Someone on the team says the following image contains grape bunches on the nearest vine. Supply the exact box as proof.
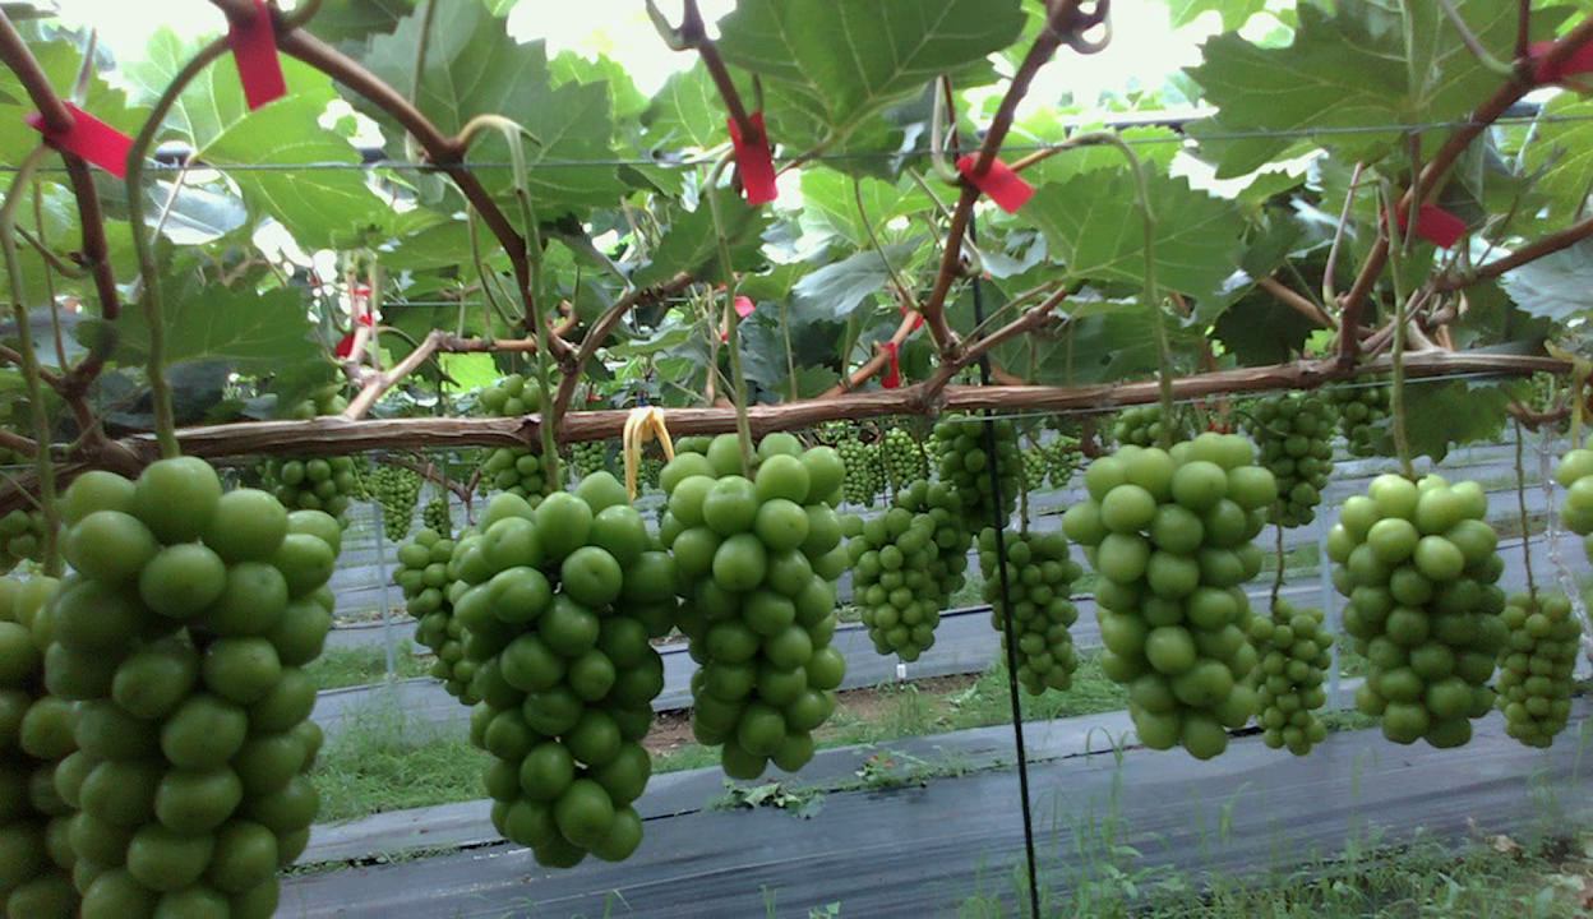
[41,453,338,918]
[1325,475,1509,745]
[449,471,678,869]
[660,431,849,779]
[0,576,80,918]
[1059,430,1276,759]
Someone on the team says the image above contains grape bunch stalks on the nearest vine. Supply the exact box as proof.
[451,115,563,491]
[1,143,60,578]
[1104,134,1176,452]
[128,32,232,457]
[1376,176,1412,476]
[705,151,753,476]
